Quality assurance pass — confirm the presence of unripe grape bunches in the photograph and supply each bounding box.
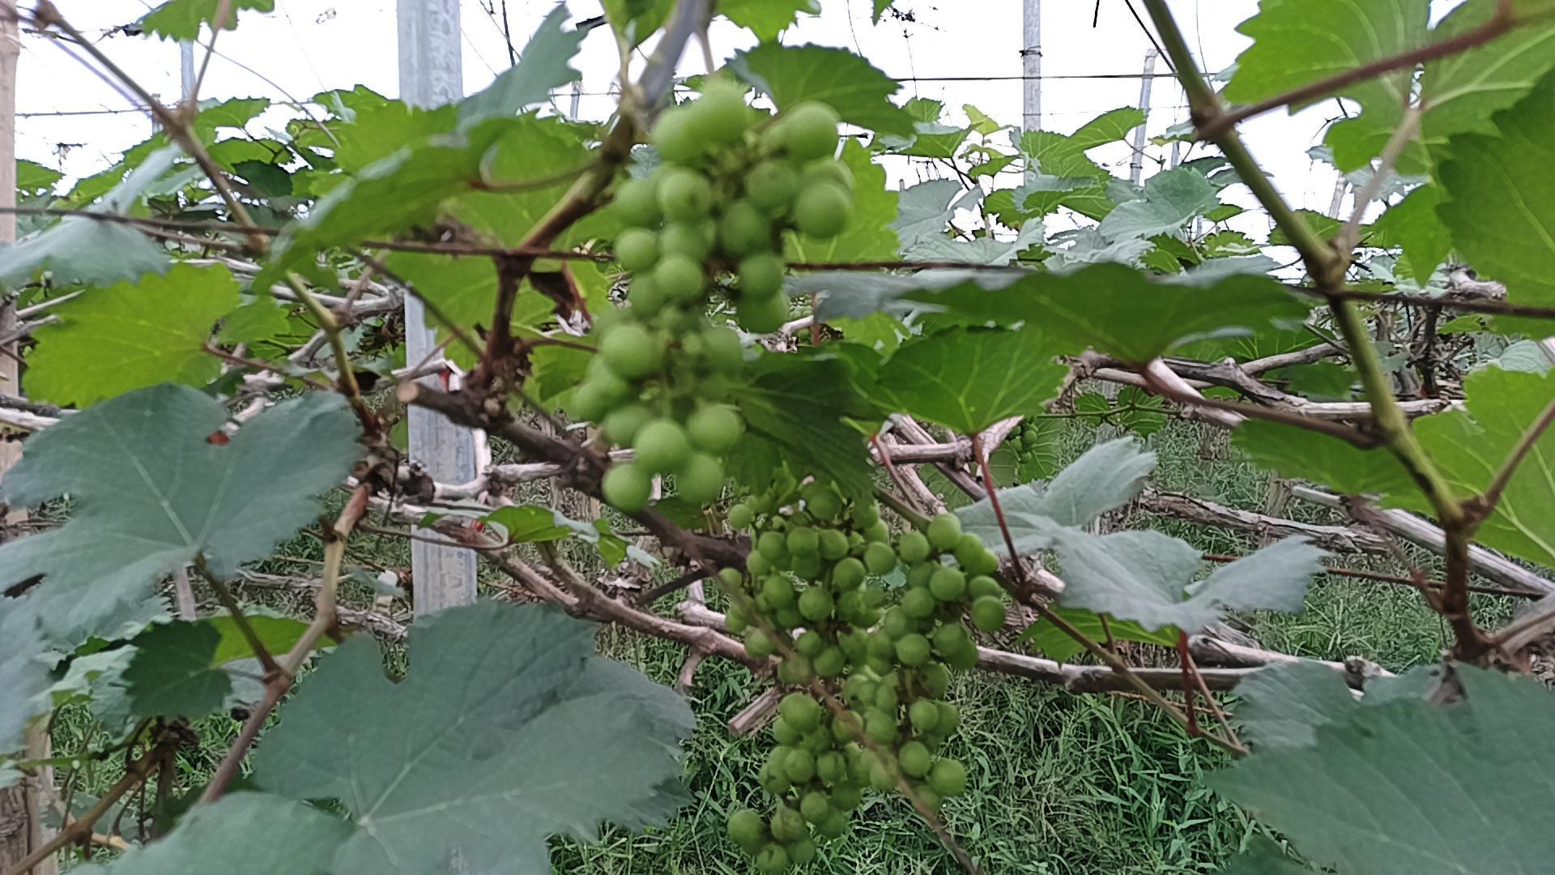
[718,476,897,685]
[728,692,870,874]
[844,513,1006,813]
[568,83,854,514]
